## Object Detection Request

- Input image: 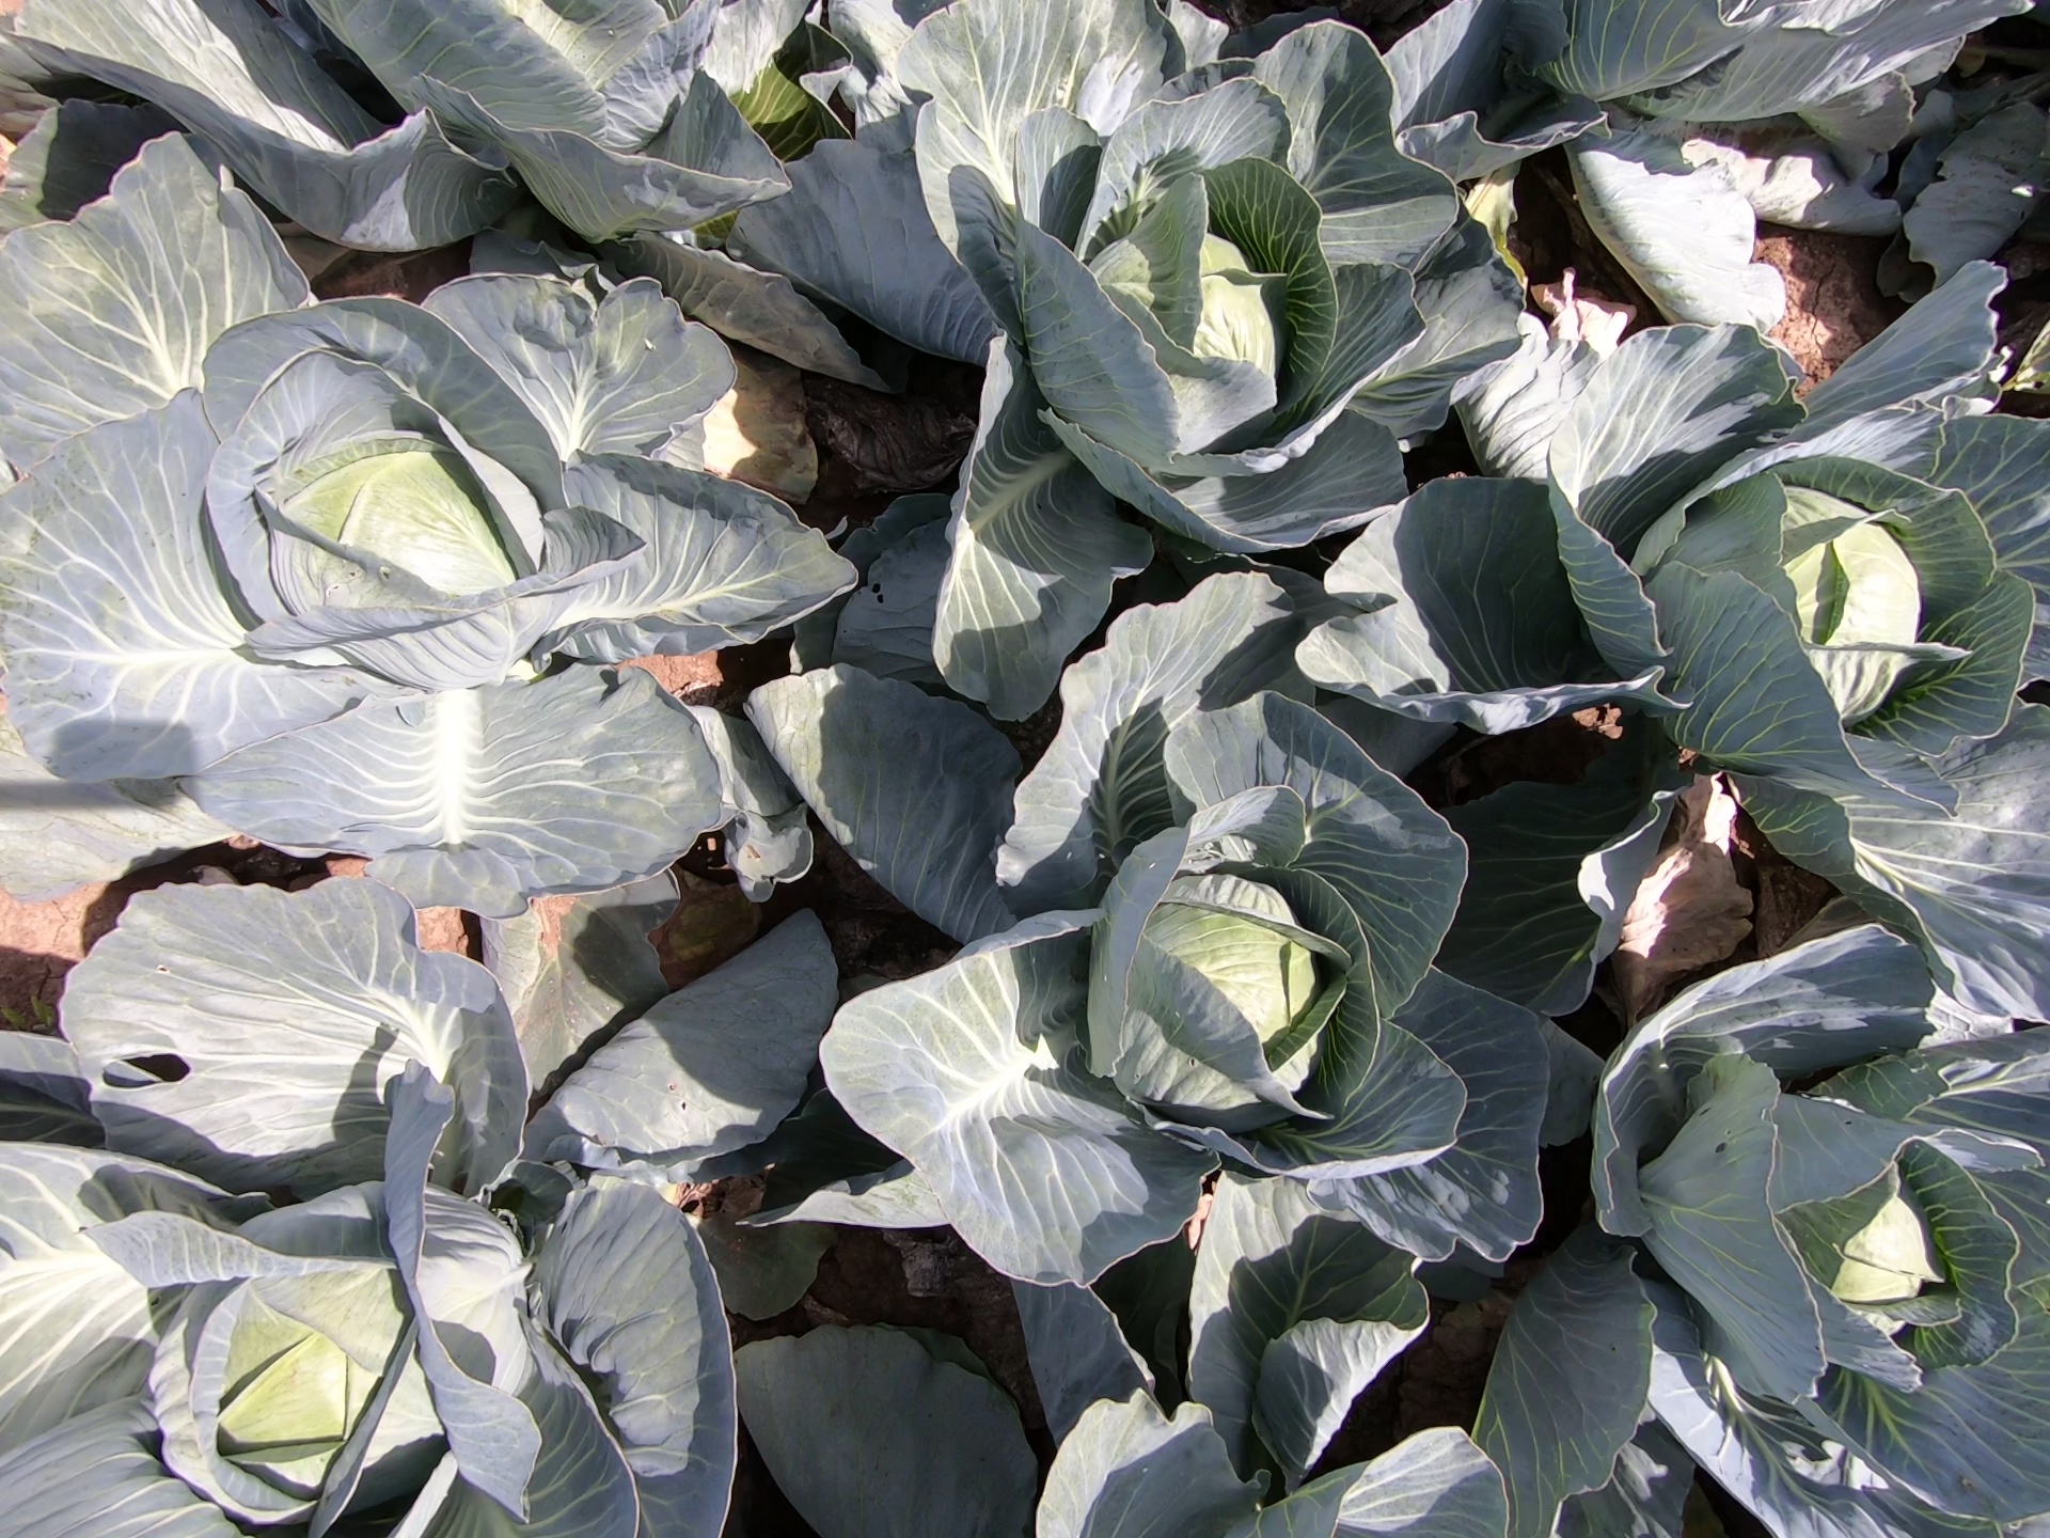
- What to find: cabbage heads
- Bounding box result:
[156,1181,524,1528]
[1719,1142,1939,1344]
[1101,870,1327,1134]
[1655,487,1921,731]
[267,428,543,690]
[1076,222,1288,449]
